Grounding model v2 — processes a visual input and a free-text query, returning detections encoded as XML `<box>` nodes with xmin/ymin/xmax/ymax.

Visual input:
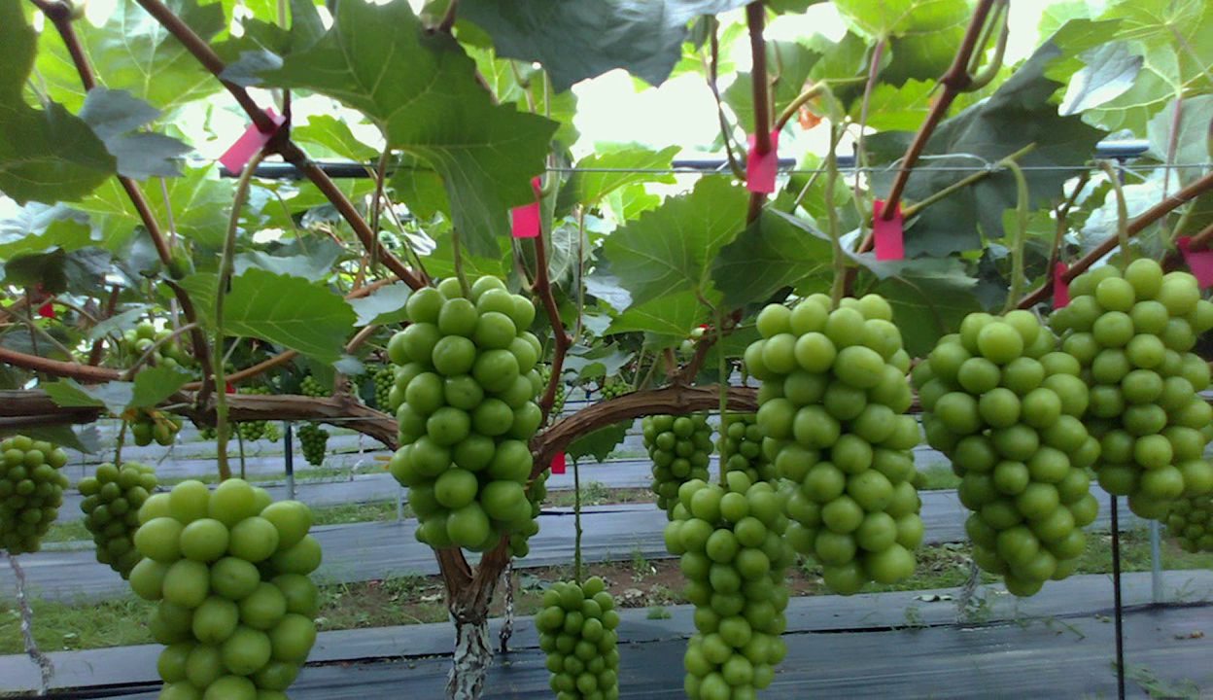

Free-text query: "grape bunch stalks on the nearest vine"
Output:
<box><xmin>213</xmin><ymin>142</ymin><xmax>280</xmax><ymax>479</ymax></box>
<box><xmin>772</xmin><ymin>82</ymin><xmax>844</xmax><ymax>308</ymax></box>
<box><xmin>991</xmin><ymin>158</ymin><xmax>1028</xmax><ymax>313</ymax></box>
<box><xmin>1087</xmin><ymin>159</ymin><xmax>1129</xmax><ymax>271</ymax></box>
<box><xmin>715</xmin><ymin>311</ymin><xmax>729</xmax><ymax>490</ymax></box>
<box><xmin>452</xmin><ymin>227</ymin><xmax>469</xmax><ymax>298</ymax></box>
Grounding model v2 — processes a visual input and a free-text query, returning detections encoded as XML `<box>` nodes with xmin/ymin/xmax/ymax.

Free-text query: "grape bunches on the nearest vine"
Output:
<box><xmin>666</xmin><ymin>474</ymin><xmax>794</xmax><ymax>699</ymax></box>
<box><xmin>388</xmin><ymin>275</ymin><xmax>543</xmax><ymax>551</ymax></box>
<box><xmin>913</xmin><ymin>307</ymin><xmax>1100</xmax><ymax>597</ymax></box>
<box><xmin>1054</xmin><ymin>261</ymin><xmax>1212</xmax><ymax>518</ymax></box>
<box><xmin>129</xmin><ymin>478</ymin><xmax>322</xmax><ymax>699</ymax></box>
<box><xmin>745</xmin><ymin>293</ymin><xmax>924</xmax><ymax>596</ymax></box>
